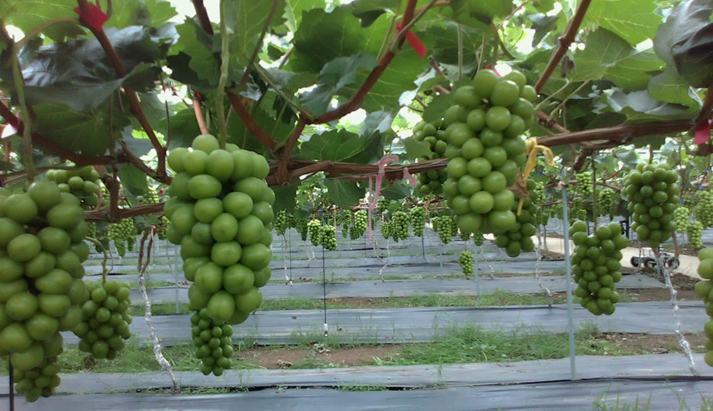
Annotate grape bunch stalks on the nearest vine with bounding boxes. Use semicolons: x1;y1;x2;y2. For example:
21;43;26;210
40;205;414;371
215;1;229;151
477;33;487;72
12;45;34;186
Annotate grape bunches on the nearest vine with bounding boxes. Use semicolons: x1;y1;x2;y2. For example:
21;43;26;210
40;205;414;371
695;247;712;366
443;69;537;236
1;181;90;369
163;135;275;325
